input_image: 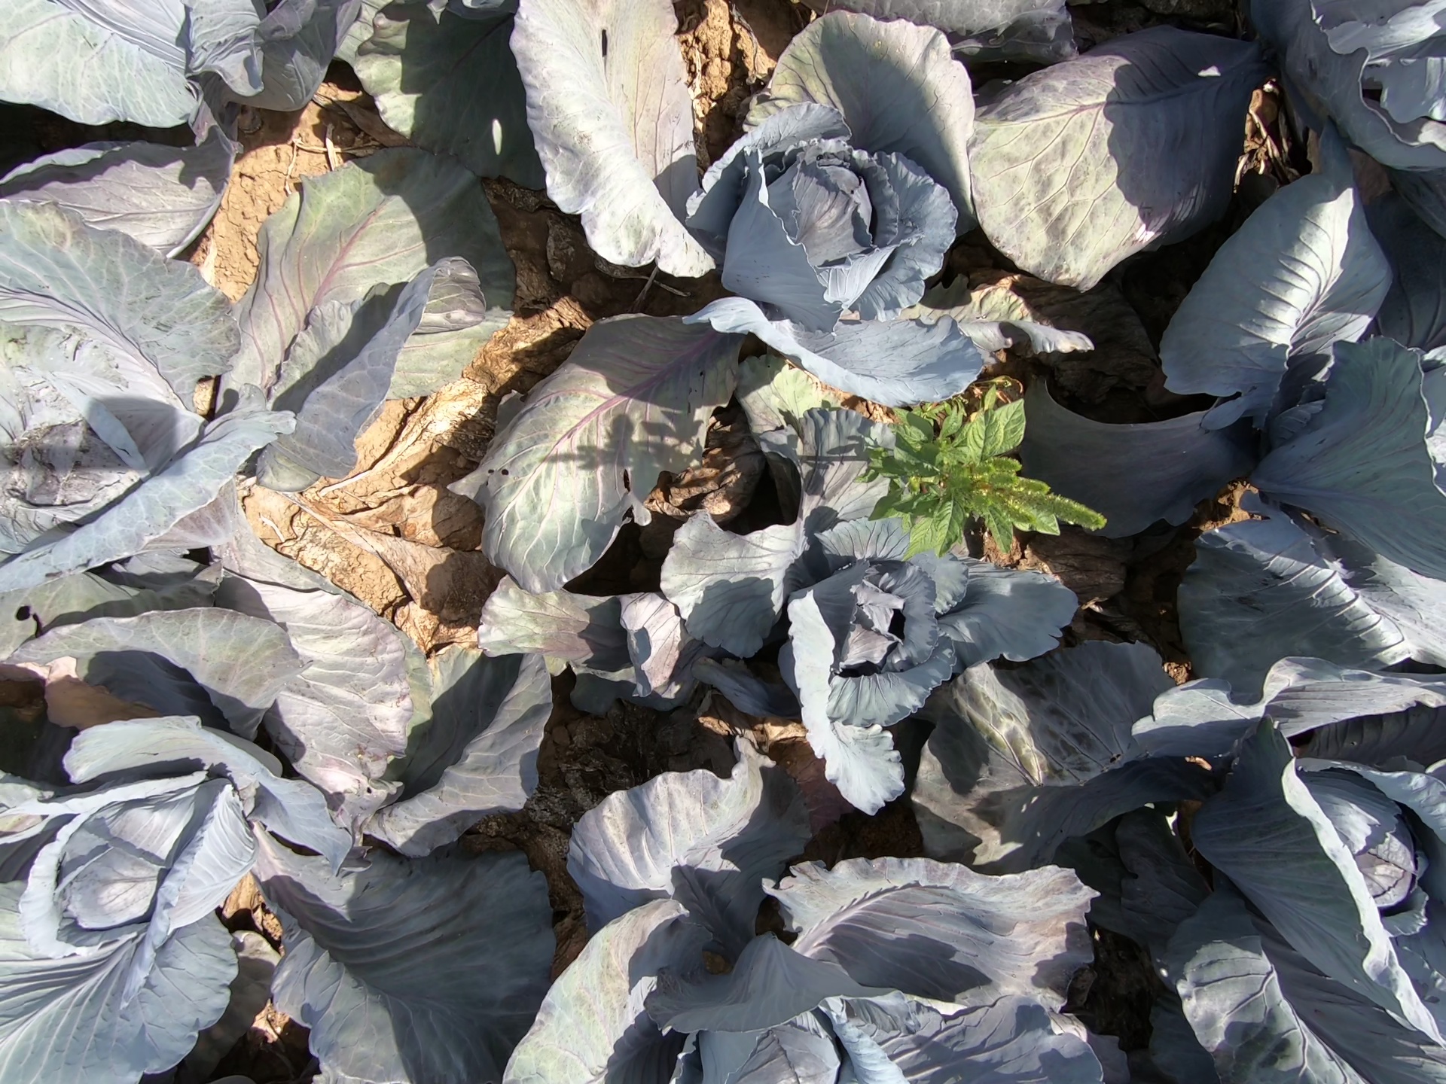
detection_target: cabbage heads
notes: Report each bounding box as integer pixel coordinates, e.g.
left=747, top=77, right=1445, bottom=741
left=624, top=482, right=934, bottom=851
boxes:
left=1383, top=374, right=1444, bottom=516
left=766, top=164, right=874, bottom=274
left=804, top=577, right=899, bottom=668
left=14, top=410, right=204, bottom=524
left=698, top=980, right=837, bottom=1080
left=57, top=792, right=241, bottom=927
left=1264, top=773, right=1418, bottom=915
